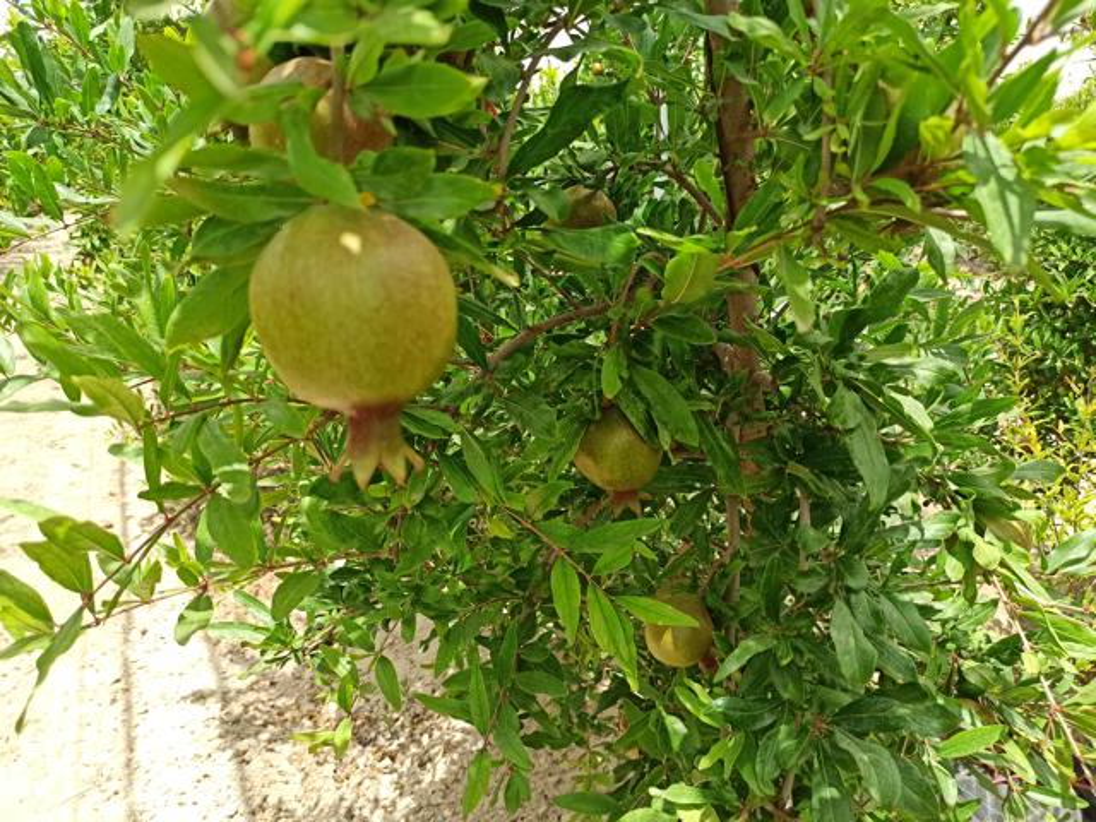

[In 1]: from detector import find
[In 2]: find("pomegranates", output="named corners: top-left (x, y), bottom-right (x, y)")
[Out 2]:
top-left (546, 185), bottom-right (616, 228)
top-left (245, 204), bottom-right (457, 490)
top-left (247, 55), bottom-right (394, 164)
top-left (572, 406), bottom-right (663, 519)
top-left (644, 593), bottom-right (719, 675)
